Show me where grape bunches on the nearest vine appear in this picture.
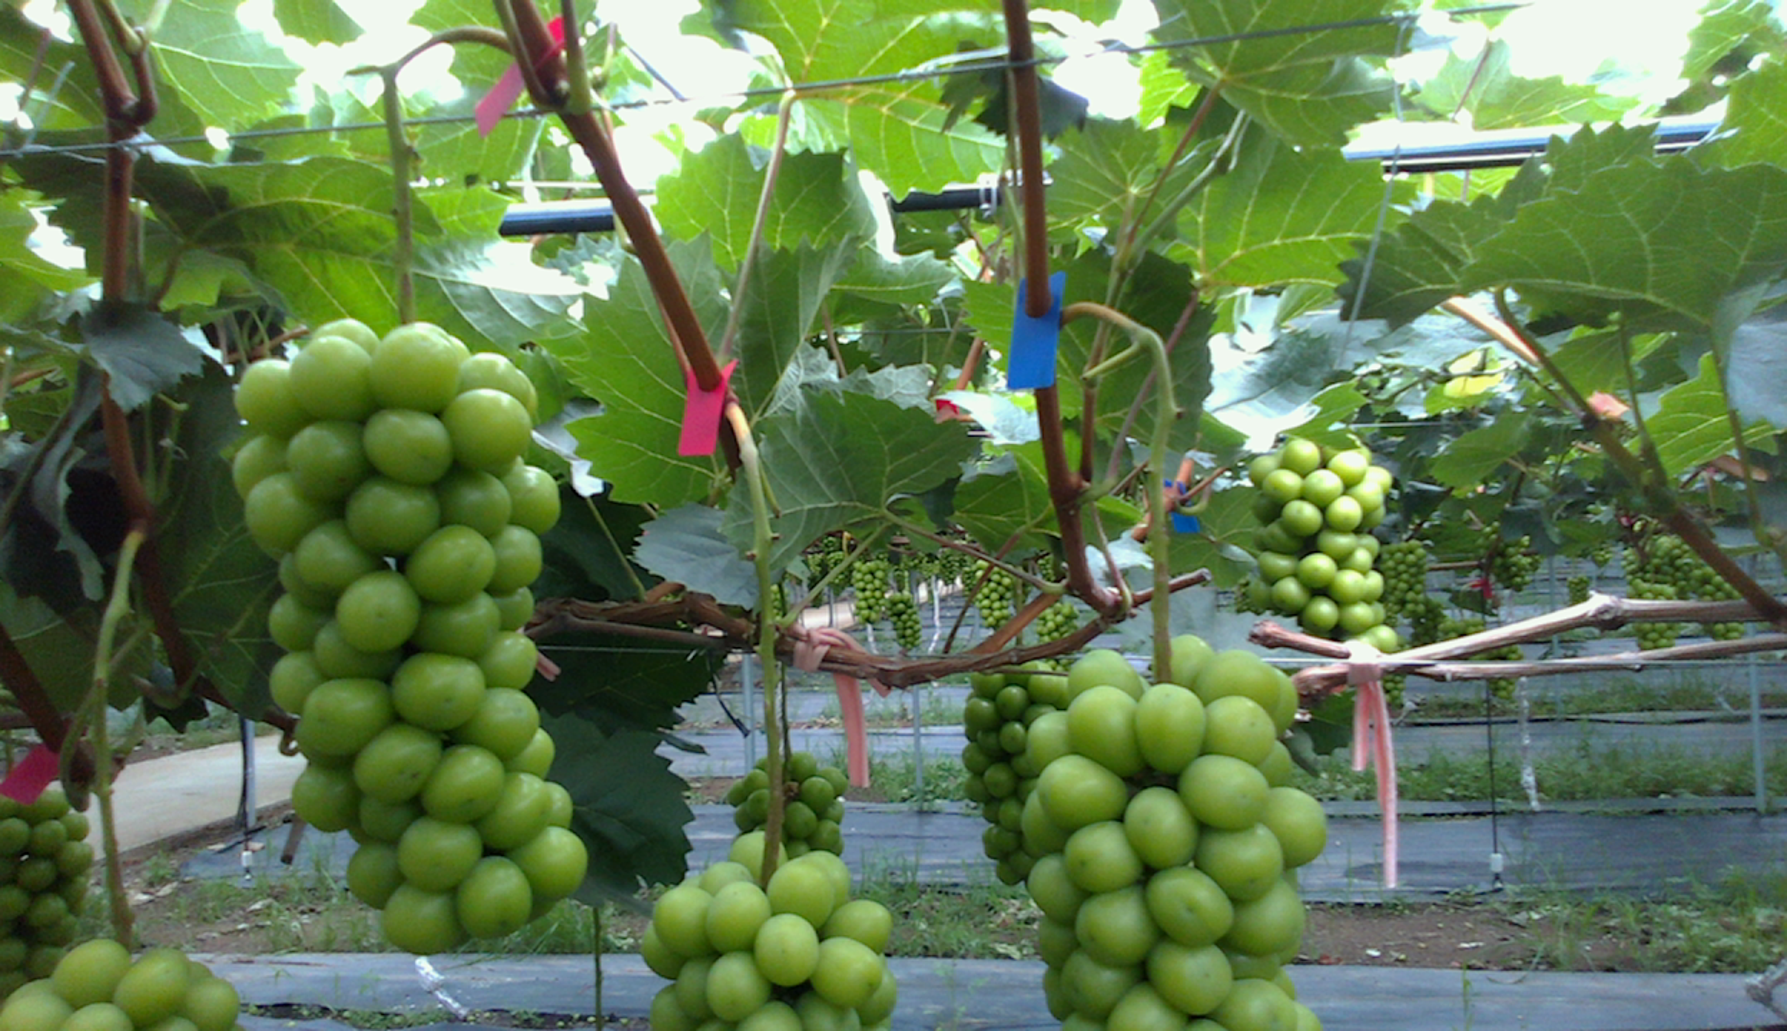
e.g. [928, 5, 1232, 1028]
[235, 315, 589, 958]
[0, 938, 242, 1030]
[1020, 633, 1326, 1028]
[640, 832, 899, 1030]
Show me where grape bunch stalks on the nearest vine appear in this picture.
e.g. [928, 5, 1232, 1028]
[92, 531, 142, 952]
[1065, 301, 1183, 680]
[348, 26, 505, 318]
[732, 411, 786, 888]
